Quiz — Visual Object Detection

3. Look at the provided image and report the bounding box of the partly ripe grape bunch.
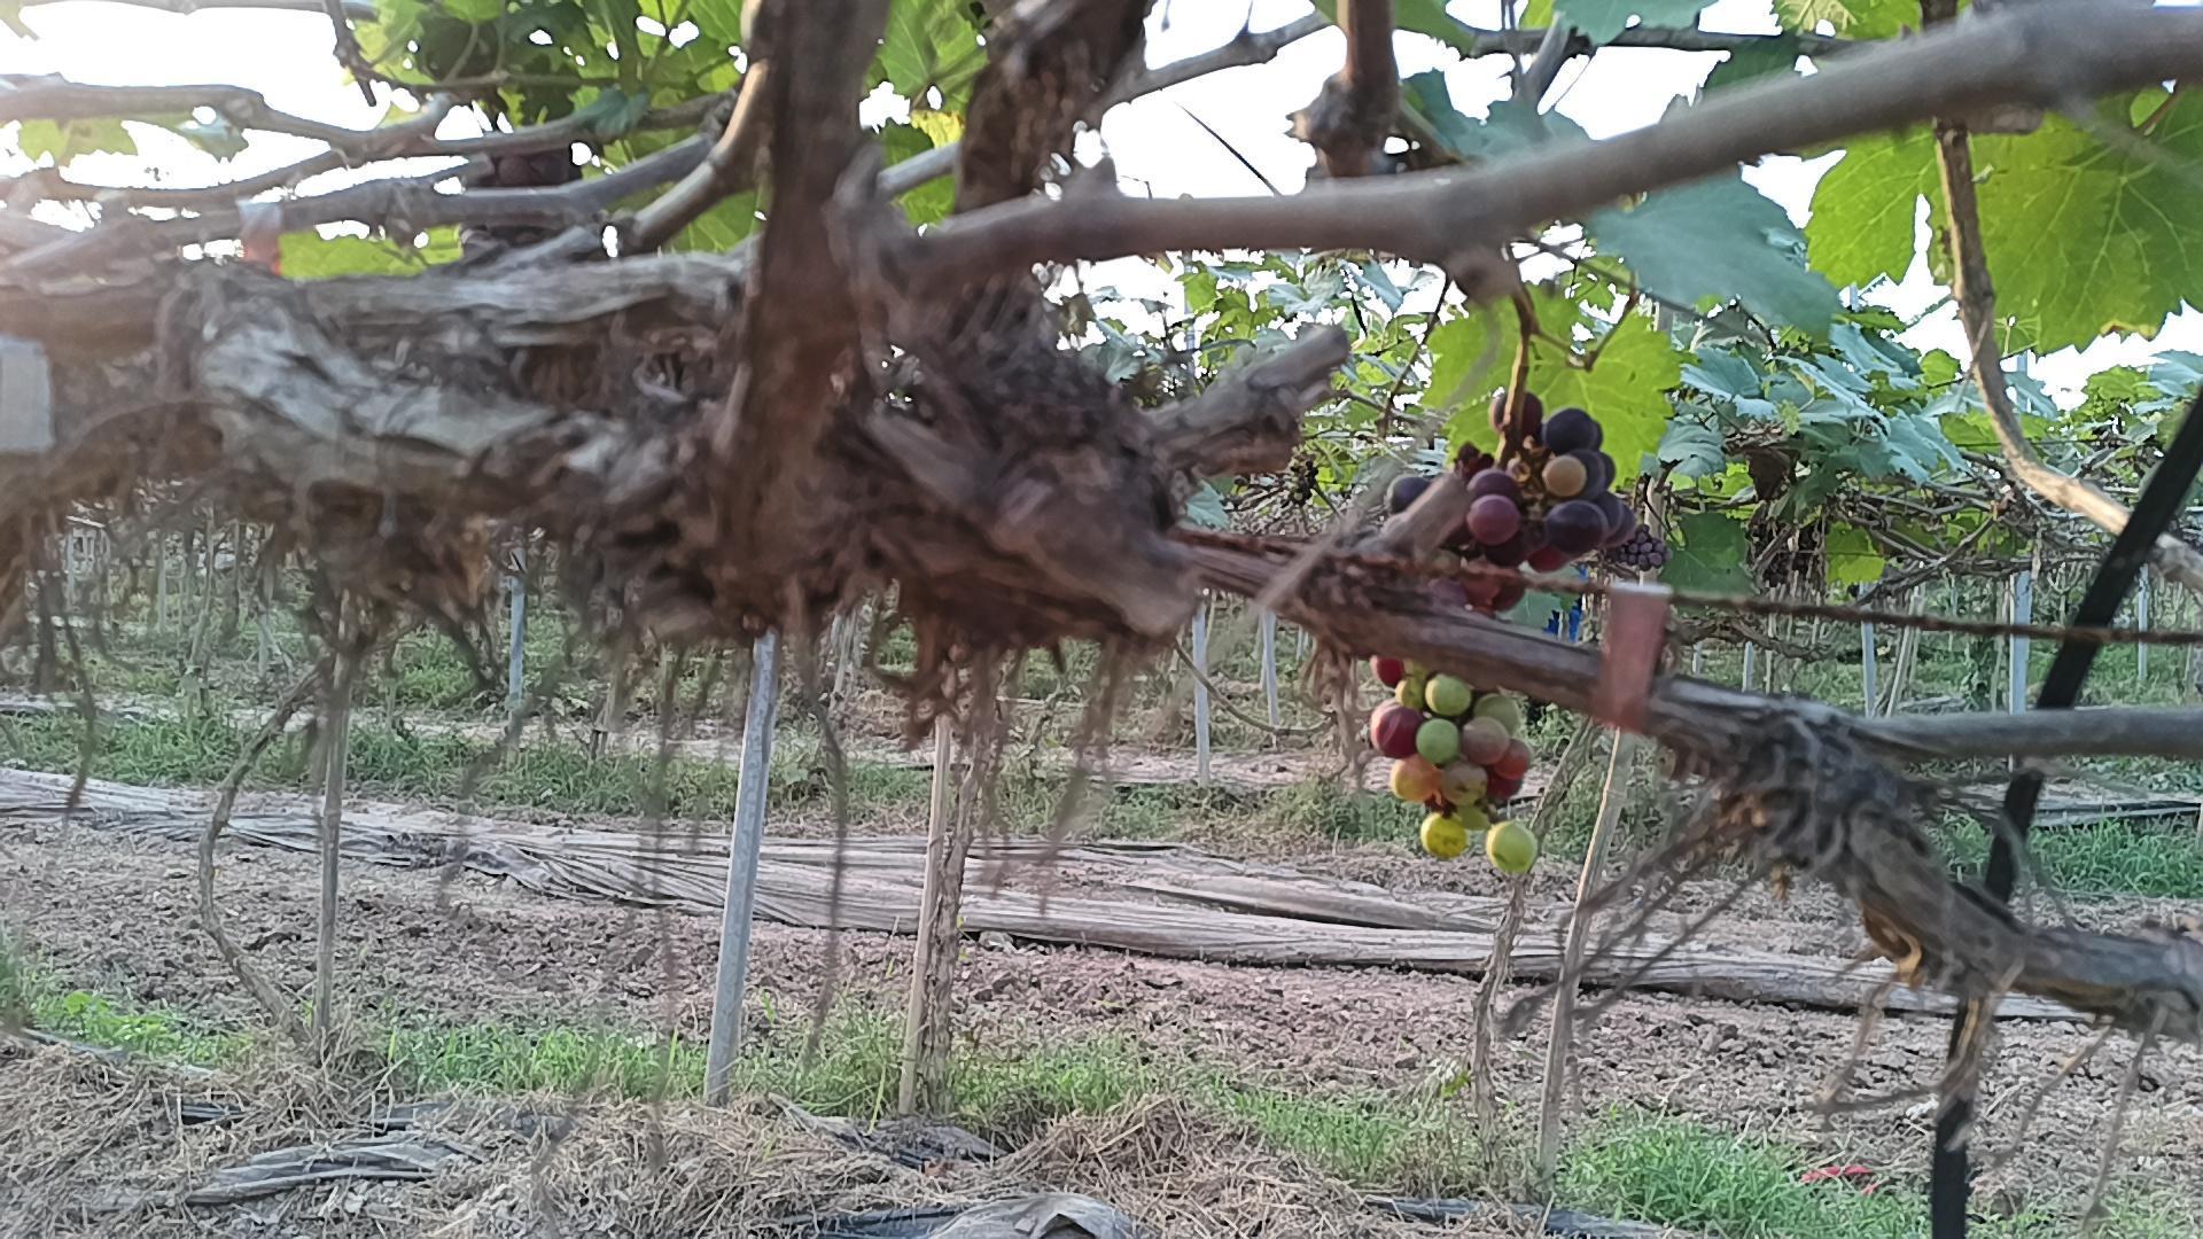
[1369,387,1634,870]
